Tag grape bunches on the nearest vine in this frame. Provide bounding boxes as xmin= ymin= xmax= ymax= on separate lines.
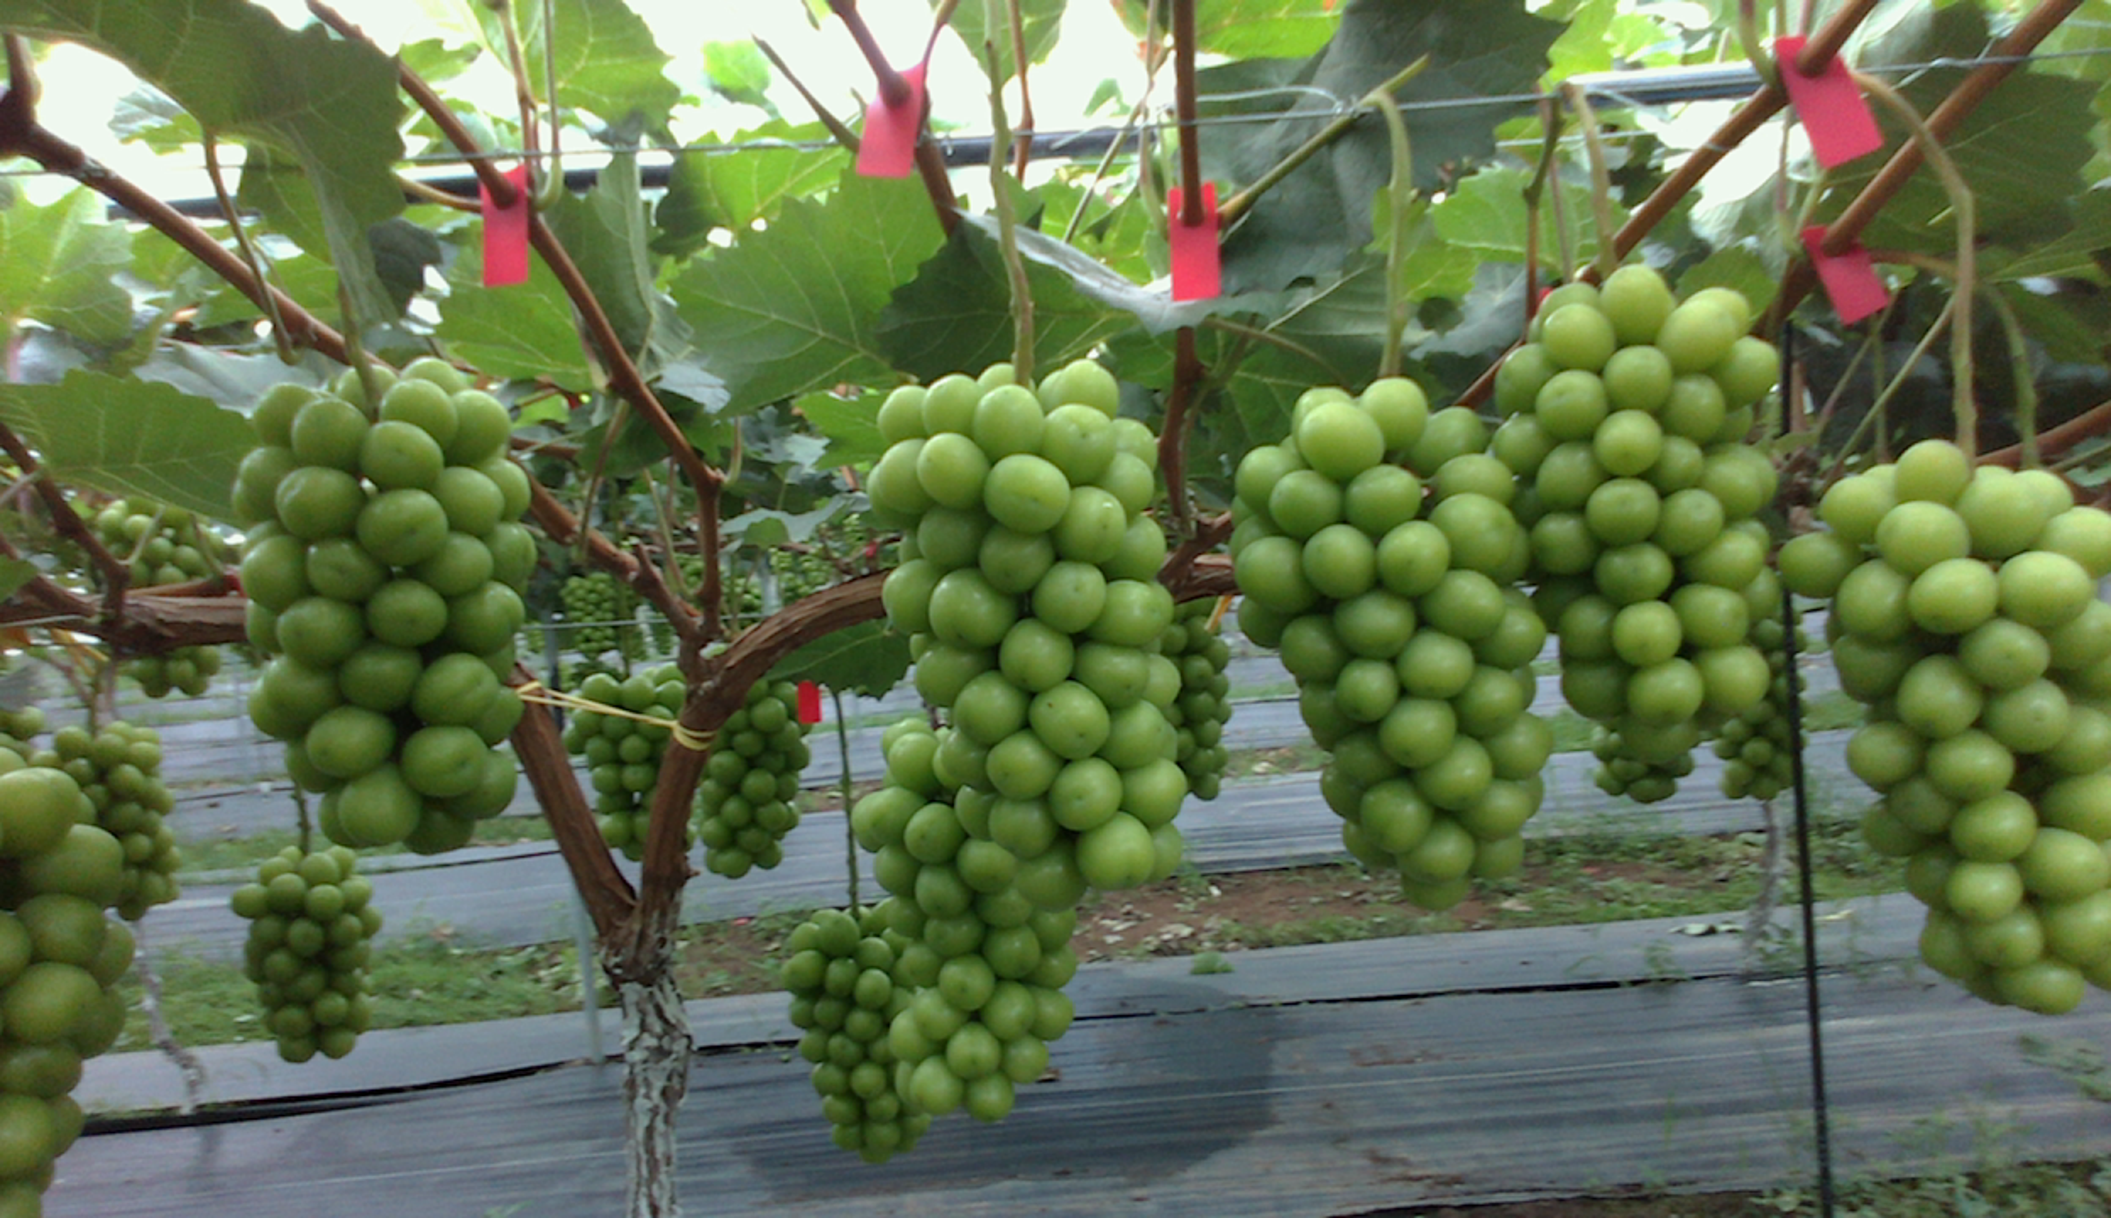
xmin=849 ymin=714 xmax=1077 ymax=1120
xmin=869 ymin=357 xmax=1187 ymax=913
xmin=230 ymin=357 xmax=533 ymax=856
xmin=1778 ymin=436 xmax=2109 ymax=1015
xmin=1228 ymin=377 xmax=1551 ymax=912
xmin=1495 ymin=266 xmax=1779 ymax=770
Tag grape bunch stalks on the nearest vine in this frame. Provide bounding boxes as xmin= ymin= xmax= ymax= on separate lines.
xmin=1374 ymin=90 xmax=1407 ymax=376
xmin=338 ymin=293 xmax=379 ymax=406
xmin=3 ymin=744 xmax=139 ymax=1213
xmin=1561 ymin=83 xmax=1614 ymax=277
xmin=983 ymin=0 xmax=1032 ymax=386
xmin=1869 ymin=80 xmax=1977 ymax=464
